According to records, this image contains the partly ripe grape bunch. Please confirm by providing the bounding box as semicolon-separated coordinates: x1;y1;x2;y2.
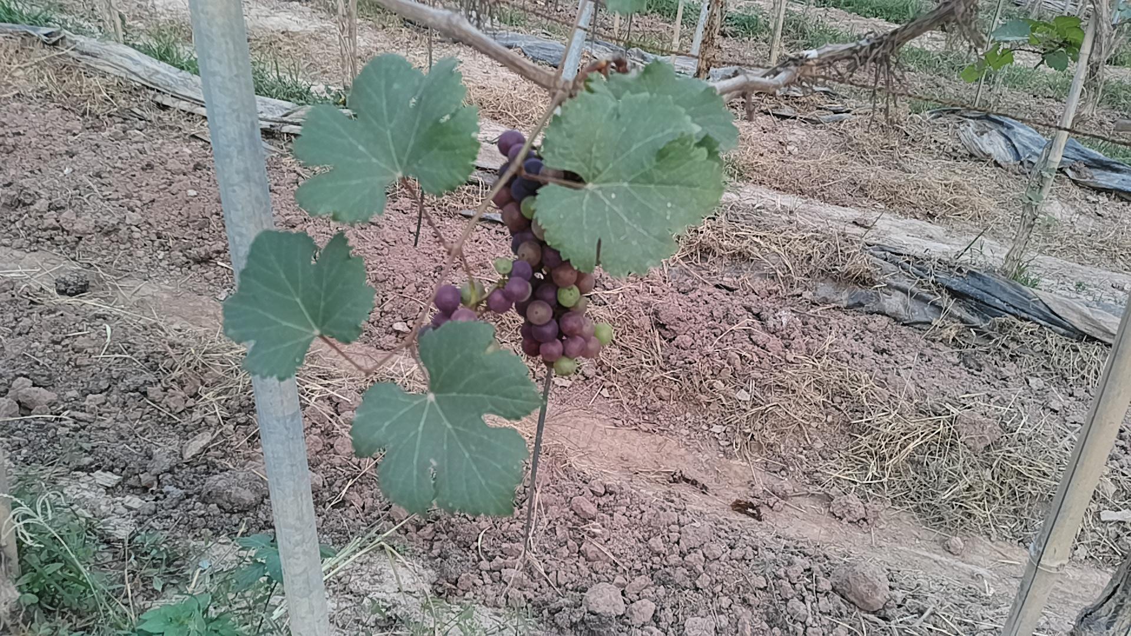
432;132;613;376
